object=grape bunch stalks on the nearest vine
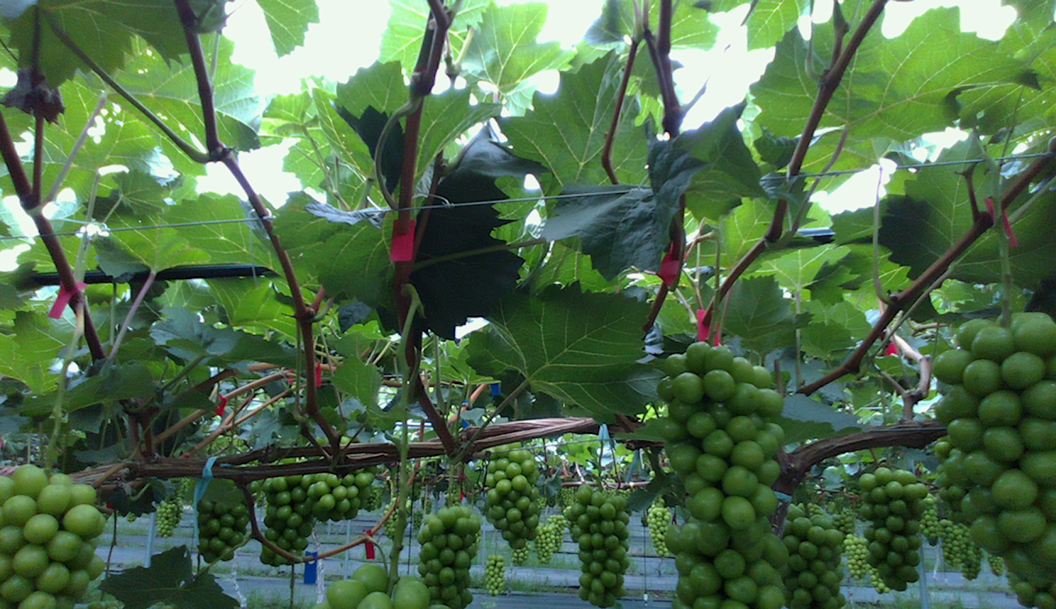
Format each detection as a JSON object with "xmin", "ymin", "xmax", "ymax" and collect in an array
[
  {"xmin": 45, "ymin": 291, "xmax": 85, "ymax": 480},
  {"xmin": 982, "ymin": 152, "xmax": 1012, "ymax": 331},
  {"xmin": 696, "ymin": 230, "xmax": 723, "ymax": 345},
  {"xmin": 385, "ymin": 283, "xmax": 420, "ymax": 596}
]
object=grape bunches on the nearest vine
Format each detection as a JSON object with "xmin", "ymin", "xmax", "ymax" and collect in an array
[
  {"xmin": 932, "ymin": 311, "xmax": 1055, "ymax": 608},
  {"xmin": 310, "ymin": 563, "xmax": 448, "ymax": 608},
  {"xmin": 656, "ymin": 342, "xmax": 789, "ymax": 608},
  {"xmin": 1, "ymin": 463, "xmax": 107, "ymax": 608}
]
